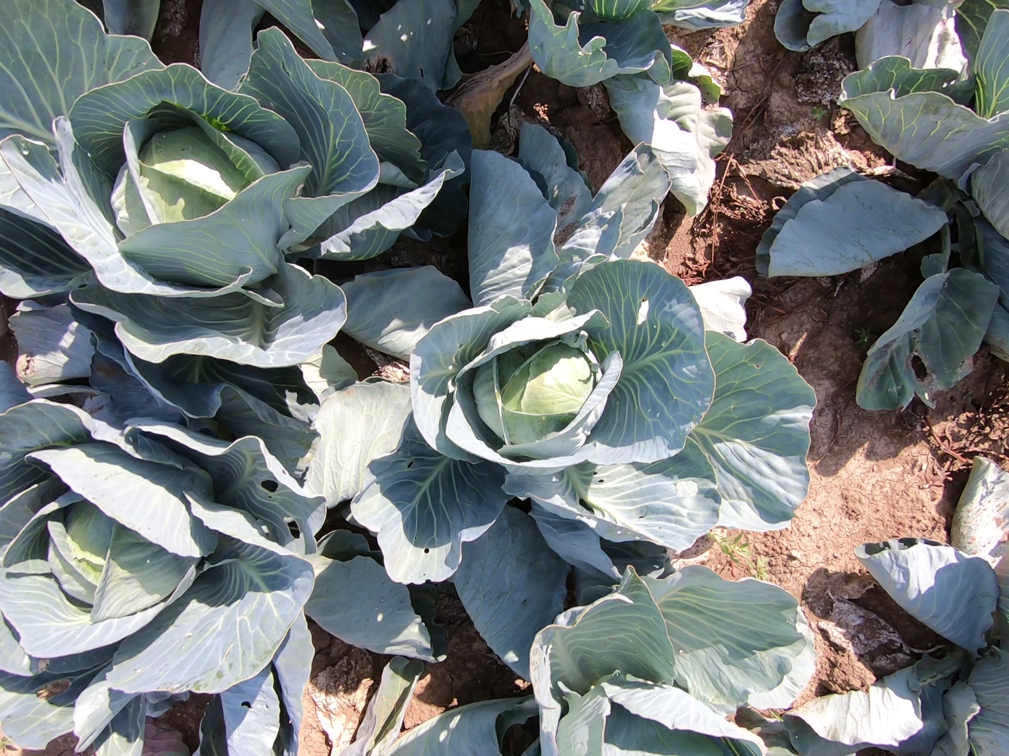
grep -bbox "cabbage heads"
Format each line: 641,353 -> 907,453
53,475 -> 197,602
567,697 -> 728,756
115,127 -> 280,269
483,329 -> 600,453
